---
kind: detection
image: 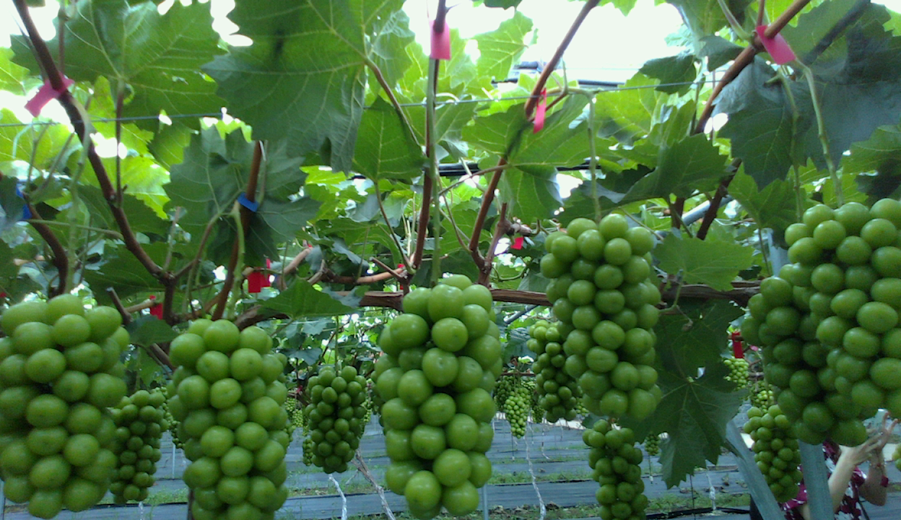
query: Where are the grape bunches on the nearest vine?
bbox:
[540,213,661,420]
[375,275,502,519]
[741,205,878,448]
[167,319,290,519]
[791,199,900,419]
[0,295,129,518]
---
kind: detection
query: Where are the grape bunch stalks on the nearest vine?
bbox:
[718,0,843,207]
[538,87,601,225]
[759,52,803,222]
[64,97,97,296]
[427,58,441,288]
[228,200,245,321]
